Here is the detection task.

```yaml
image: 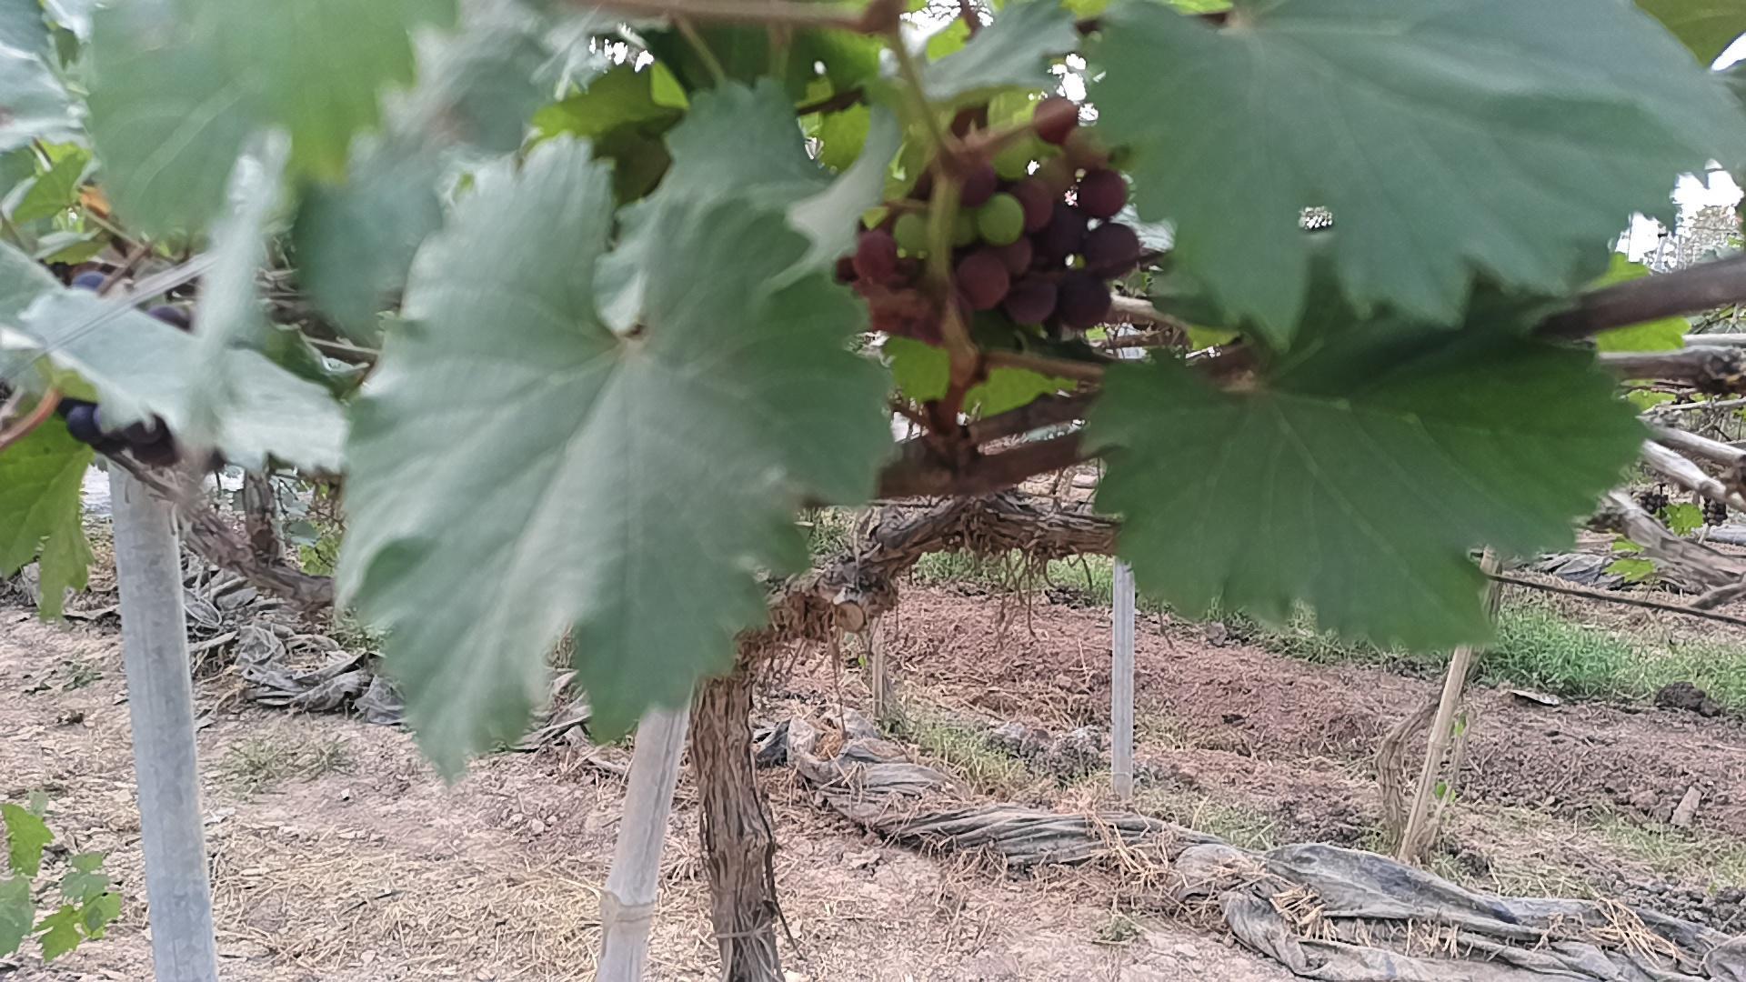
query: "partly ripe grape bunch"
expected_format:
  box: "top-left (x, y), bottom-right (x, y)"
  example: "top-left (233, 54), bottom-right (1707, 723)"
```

top-left (836, 96), bottom-right (1143, 346)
